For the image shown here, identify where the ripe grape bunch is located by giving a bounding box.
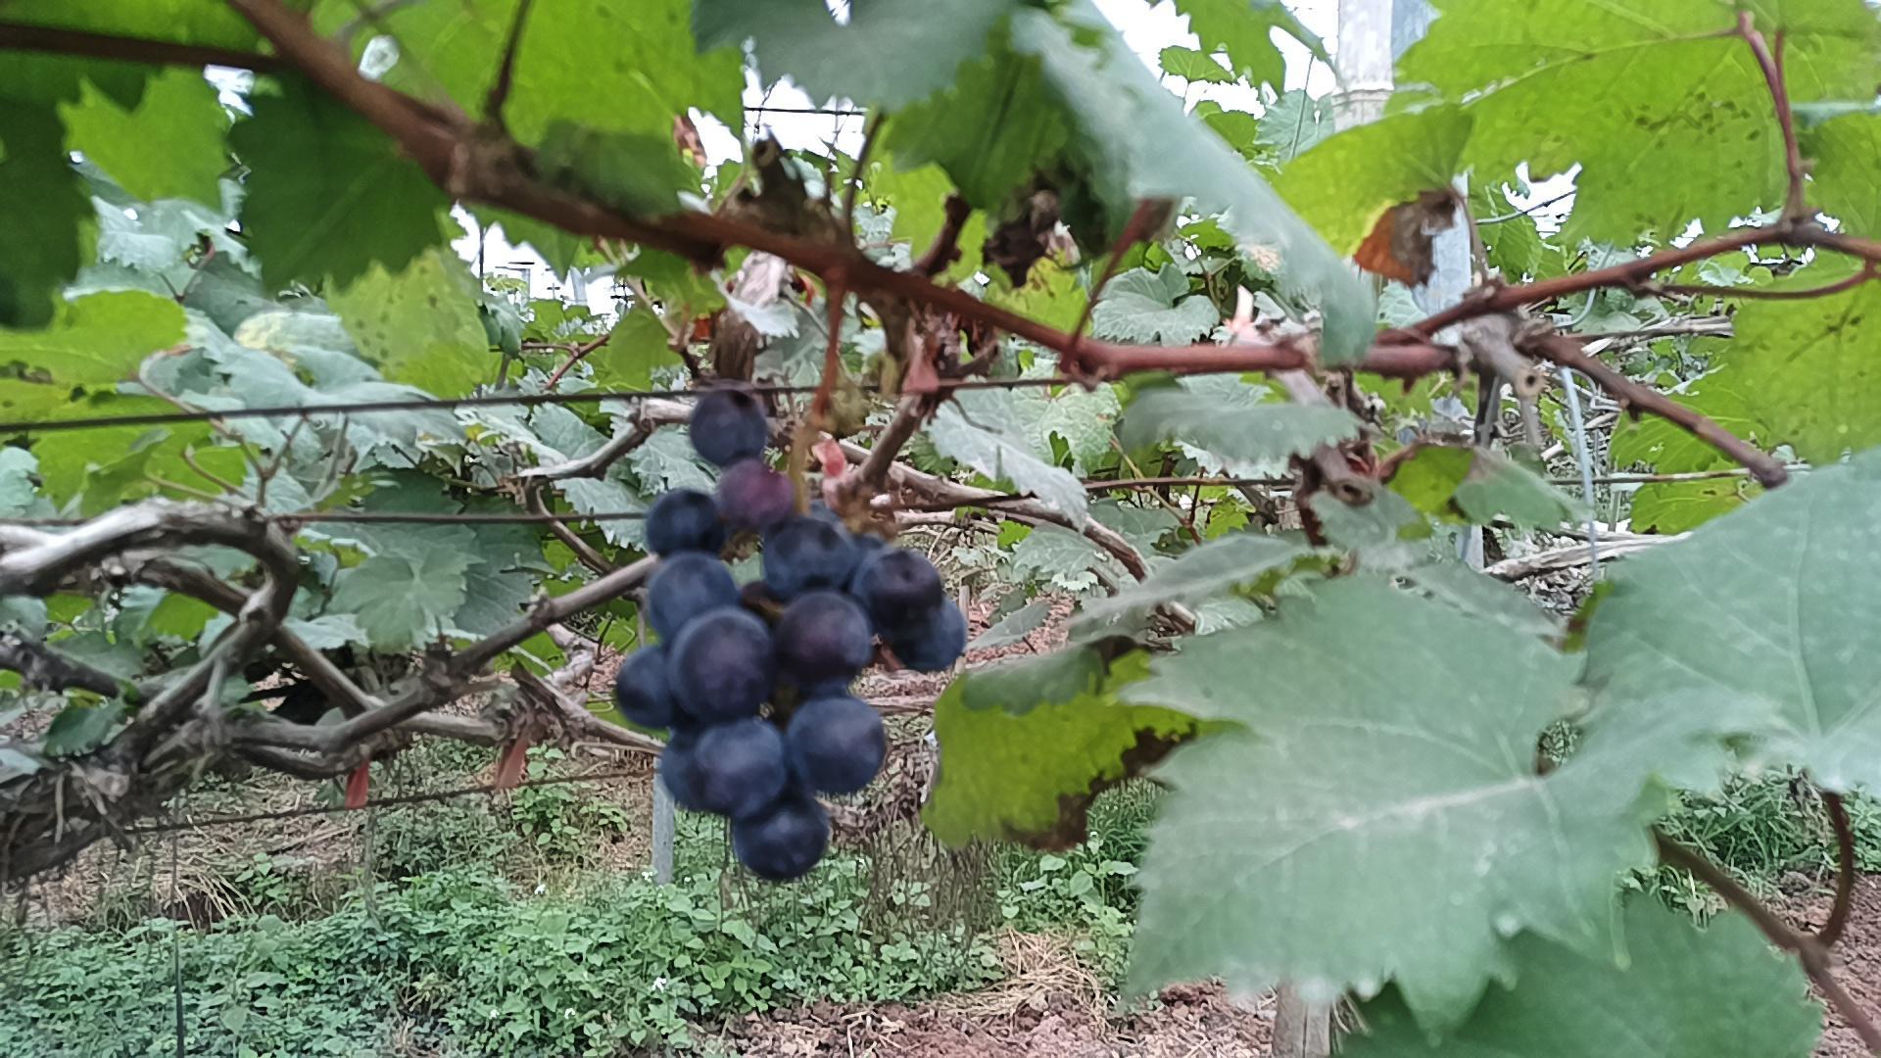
[613,386,965,876]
